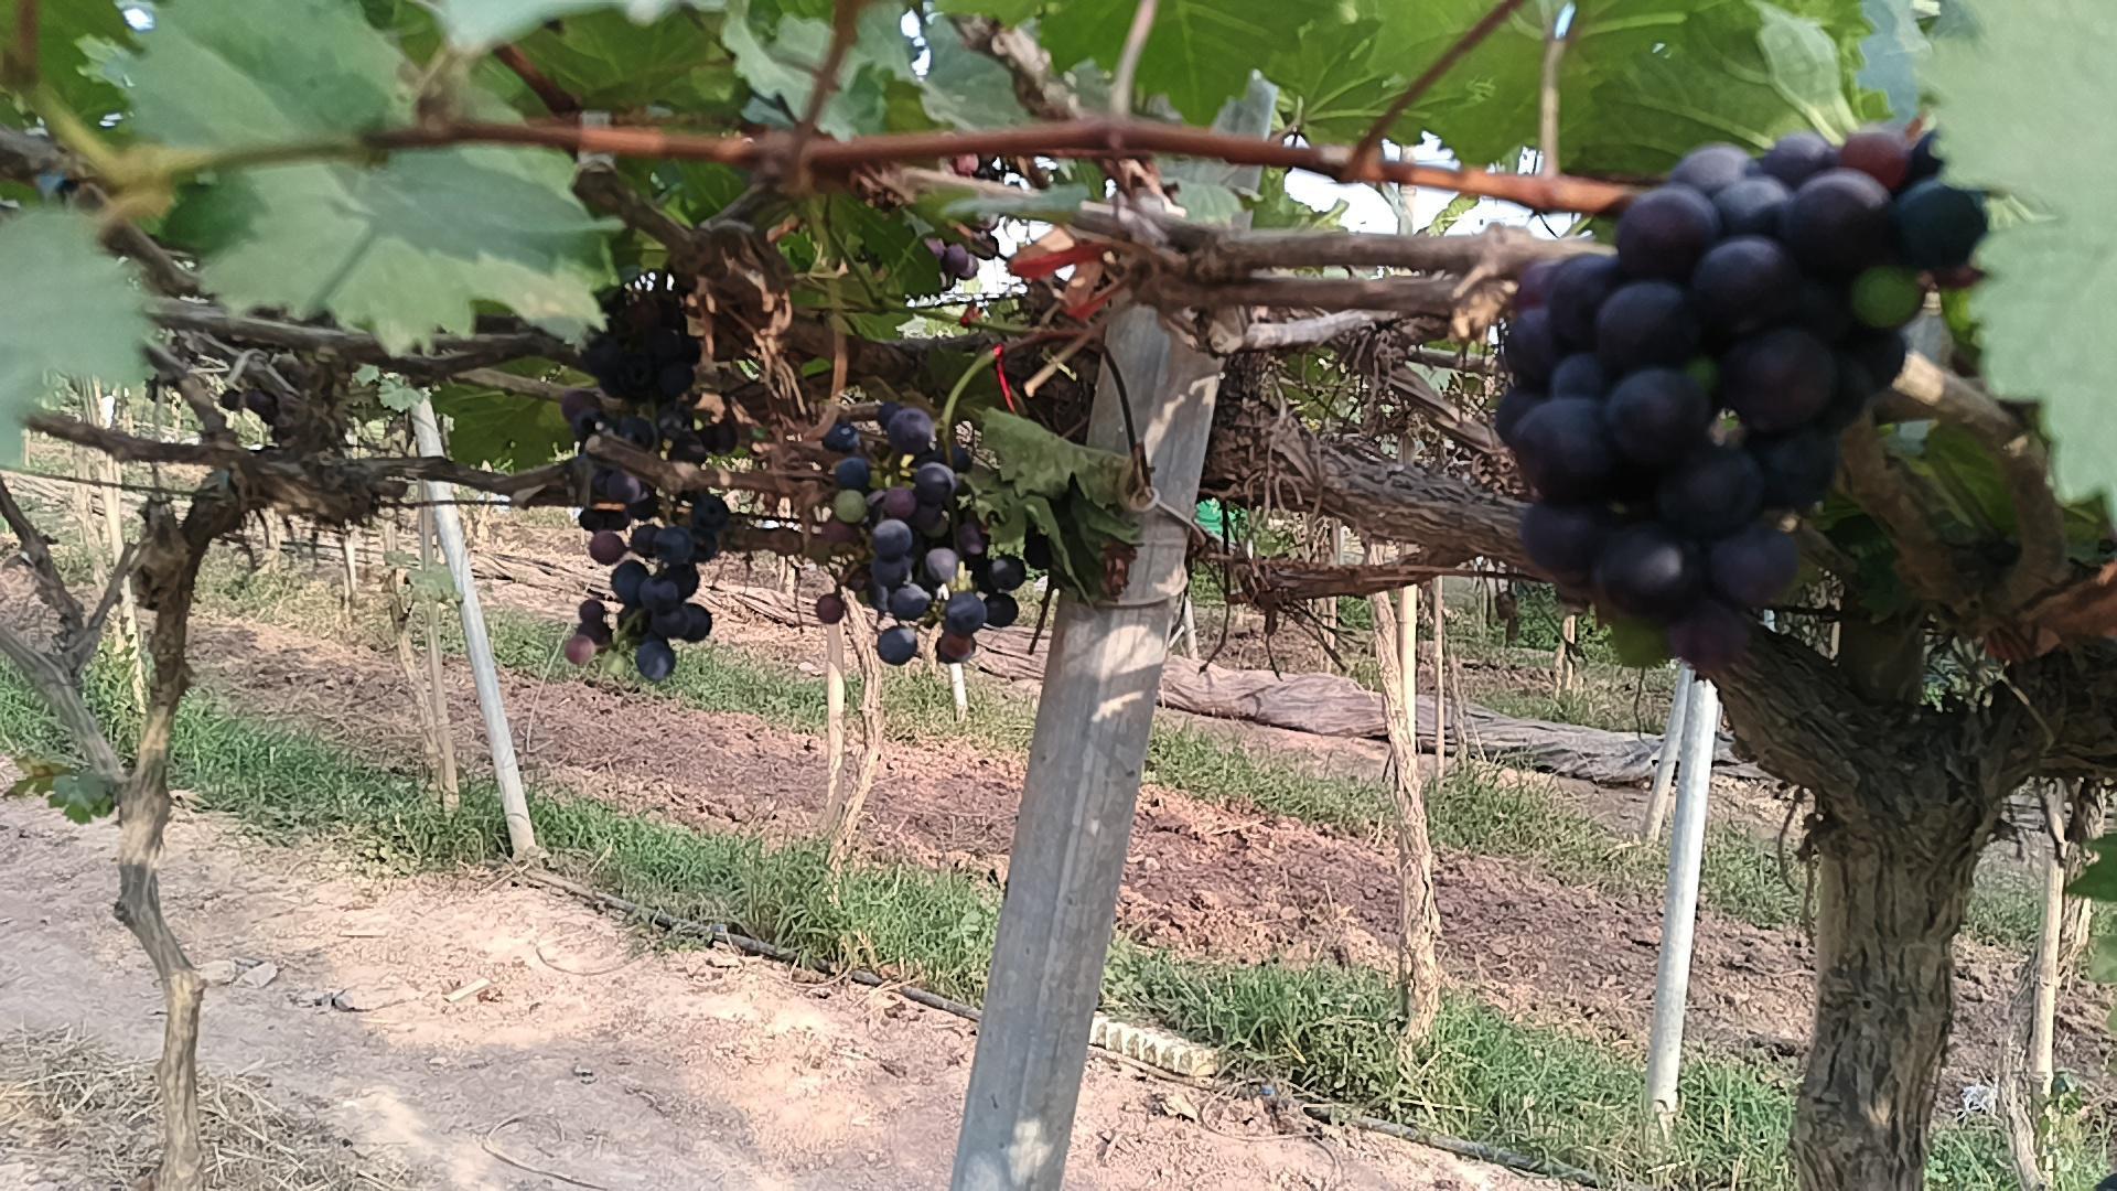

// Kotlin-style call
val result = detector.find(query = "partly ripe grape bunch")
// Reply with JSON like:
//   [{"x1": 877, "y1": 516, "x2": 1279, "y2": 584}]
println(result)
[{"x1": 816, "y1": 404, "x2": 1025, "y2": 664}]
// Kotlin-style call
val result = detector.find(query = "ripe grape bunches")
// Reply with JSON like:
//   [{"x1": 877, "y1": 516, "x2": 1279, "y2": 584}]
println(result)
[
  {"x1": 561, "y1": 287, "x2": 739, "y2": 682},
  {"x1": 1497, "y1": 132, "x2": 1986, "y2": 676}
]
